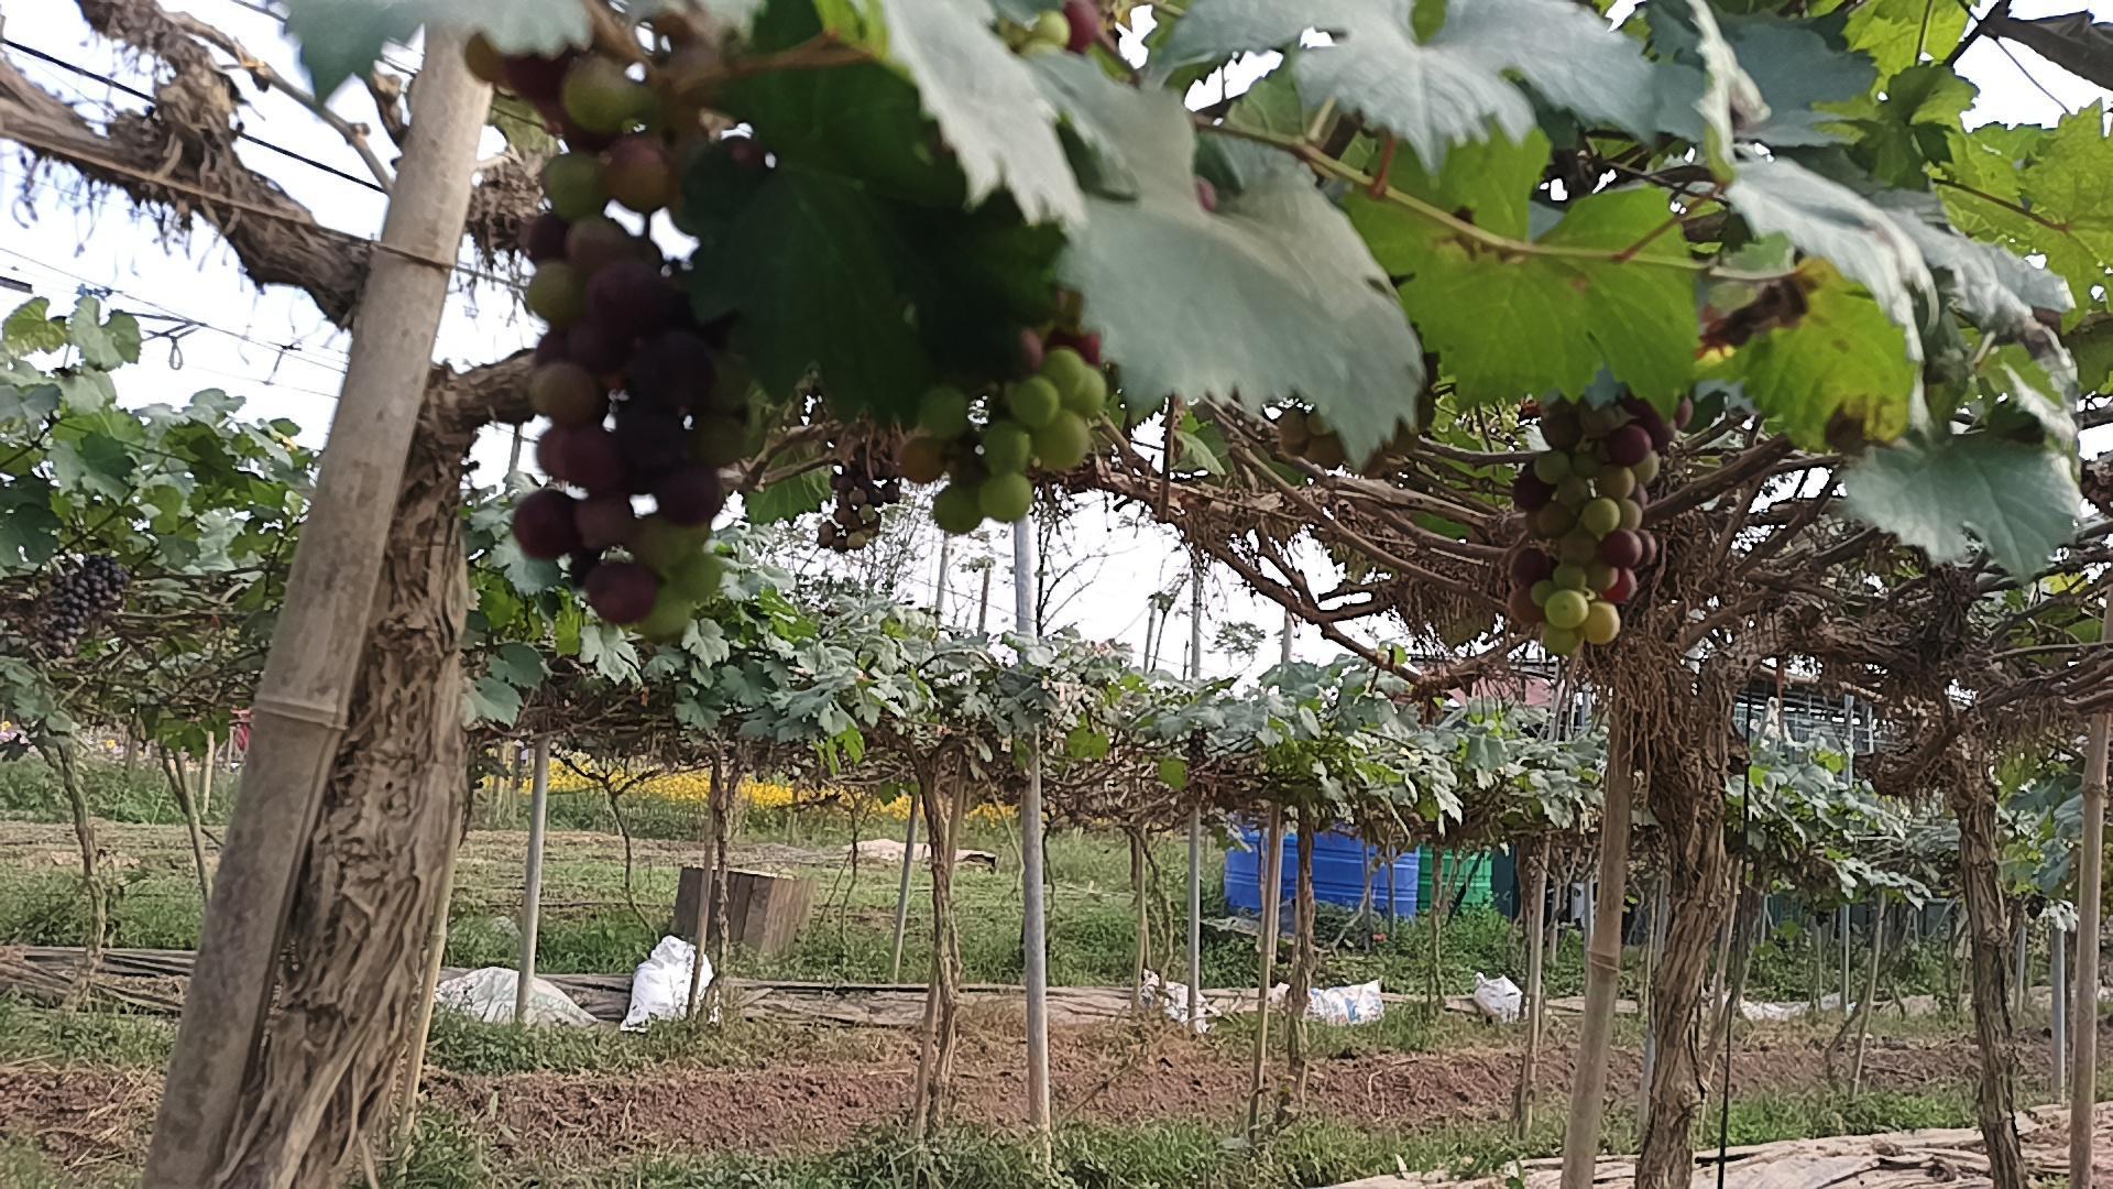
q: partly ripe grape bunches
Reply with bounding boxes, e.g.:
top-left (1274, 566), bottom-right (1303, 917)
top-left (1000, 0), bottom-right (1101, 55)
top-left (818, 457), bottom-right (899, 552)
top-left (899, 329), bottom-right (1108, 533)
top-left (1508, 400), bottom-right (1666, 655)
top-left (469, 9), bottom-right (762, 641)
